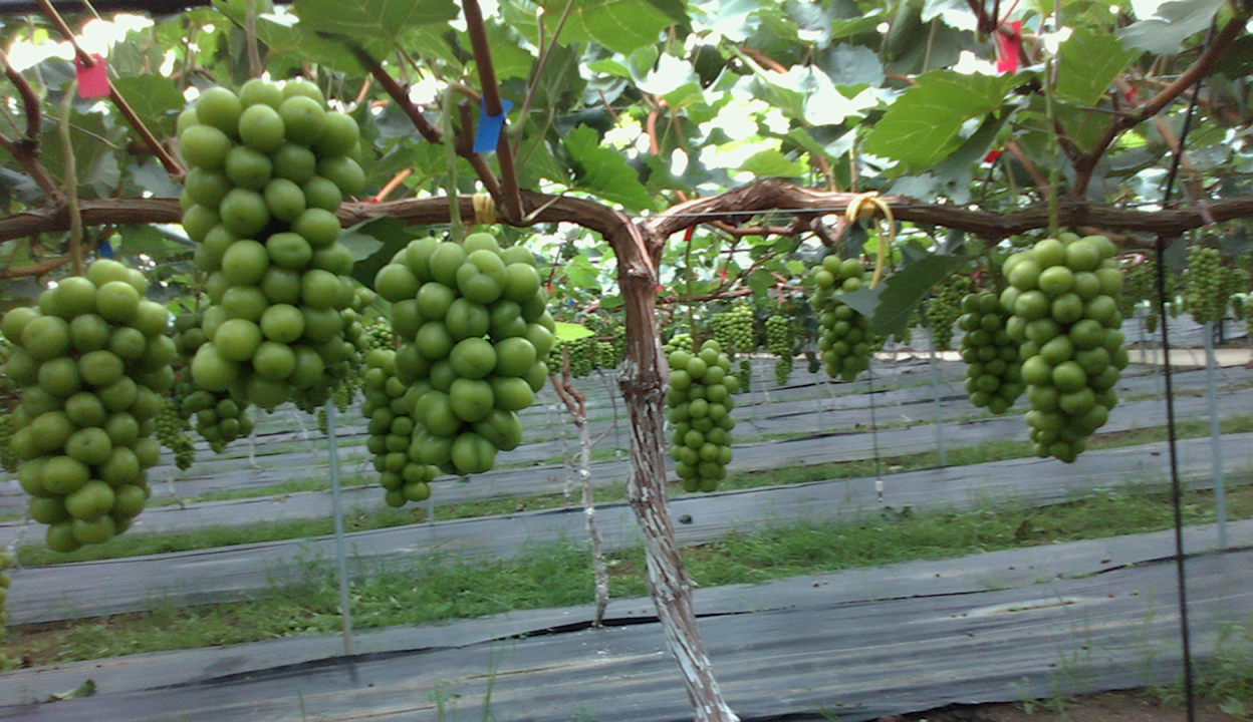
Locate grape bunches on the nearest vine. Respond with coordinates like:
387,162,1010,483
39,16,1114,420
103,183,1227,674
374,232,558,477
174,79,365,407
0,256,178,553
1000,233,1130,437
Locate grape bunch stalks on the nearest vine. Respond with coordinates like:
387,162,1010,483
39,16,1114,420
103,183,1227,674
443,82,475,243
60,80,82,276
1044,58,1059,237
245,0,262,77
